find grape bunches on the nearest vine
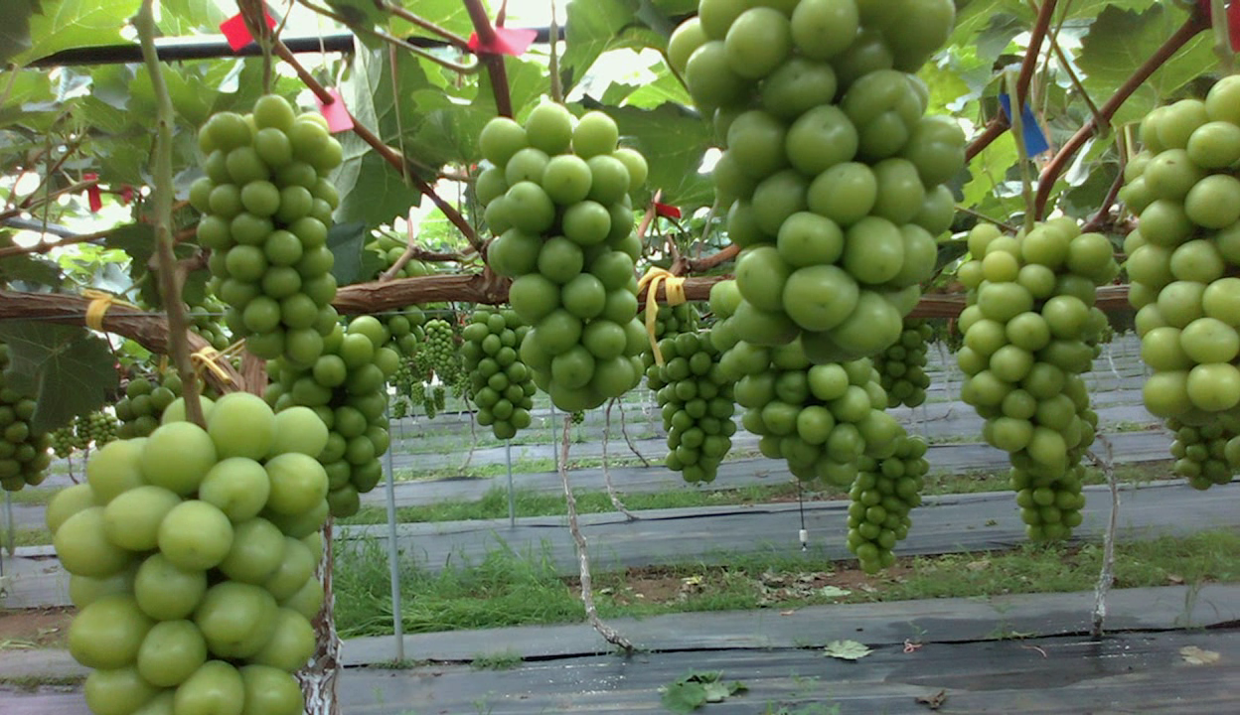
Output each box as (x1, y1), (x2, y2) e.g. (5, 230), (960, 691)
(708, 281), (898, 490)
(667, 0), (965, 365)
(264, 314), (397, 521)
(1120, 75), (1239, 427)
(477, 102), (647, 414)
(191, 96), (345, 369)
(957, 216), (1118, 470)
(47, 390), (328, 713)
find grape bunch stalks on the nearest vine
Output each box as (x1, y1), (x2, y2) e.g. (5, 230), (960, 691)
(1211, 0), (1233, 73)
(548, 2), (561, 101)
(1004, 70), (1034, 231)
(130, 0), (206, 426)
(254, 0), (272, 92)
